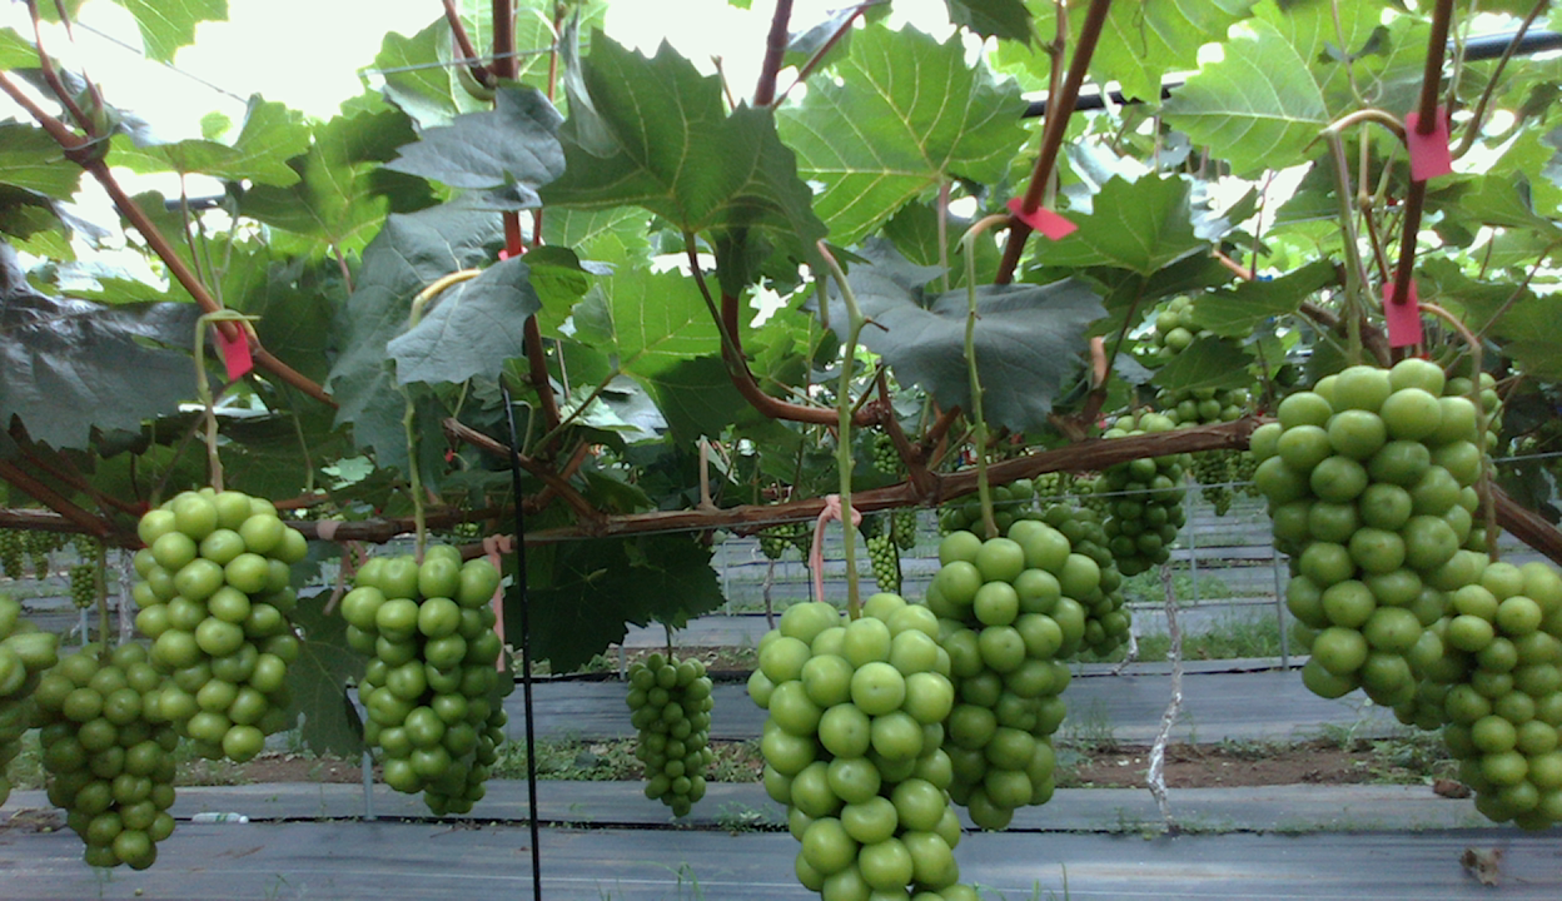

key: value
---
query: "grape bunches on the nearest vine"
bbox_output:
[1253,358,1479,706]
[1418,553,1561,835]
[35,639,176,872]
[924,519,1101,831]
[342,546,501,793]
[747,593,976,900]
[131,487,309,763]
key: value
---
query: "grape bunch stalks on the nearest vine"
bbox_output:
[816,242,862,623]
[1419,302,1501,564]
[962,215,1011,539]
[195,309,258,496]
[399,270,482,567]
[96,542,109,667]
[1325,110,1407,365]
